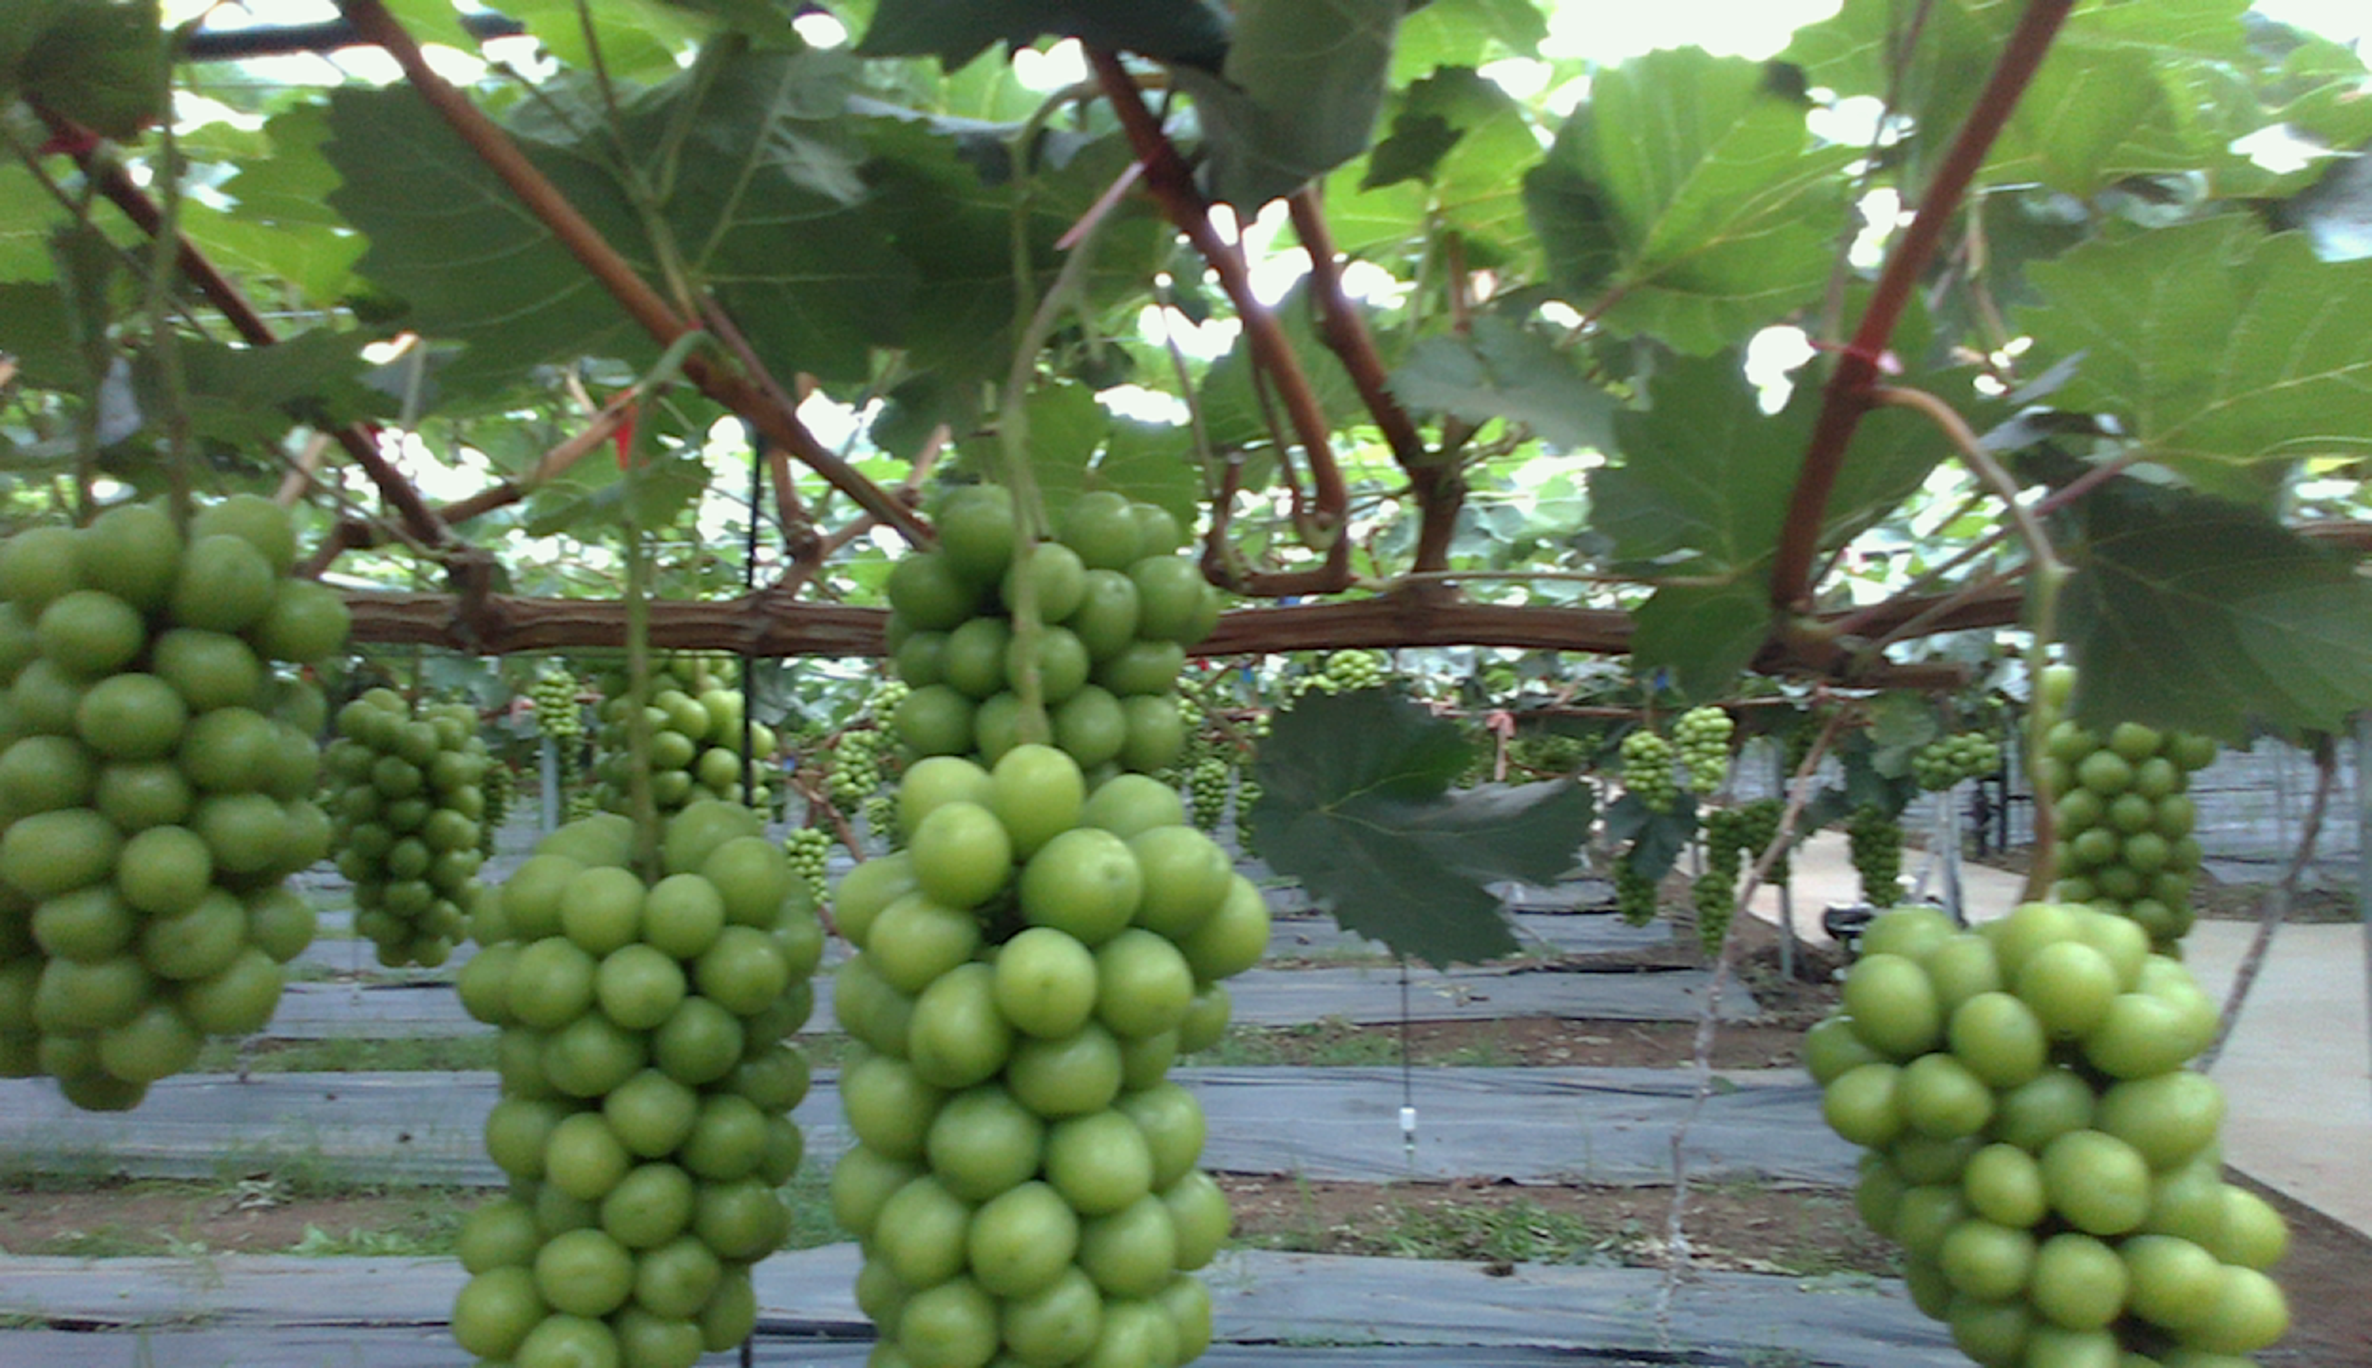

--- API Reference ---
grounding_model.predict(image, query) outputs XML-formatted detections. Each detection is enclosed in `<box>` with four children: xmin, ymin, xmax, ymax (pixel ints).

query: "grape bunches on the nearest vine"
<box><xmin>880</xmin><ymin>479</ymin><xmax>1215</xmax><ymax>788</ymax></box>
<box><xmin>834</xmin><ymin>743</ymin><xmax>1272</xmax><ymax>1366</ymax></box>
<box><xmin>1806</xmin><ymin>899</ymin><xmax>2290</xmax><ymax>1366</ymax></box>
<box><xmin>2</xmin><ymin>488</ymin><xmax>350</xmax><ymax>1083</ymax></box>
<box><xmin>452</xmin><ymin>798</ymin><xmax>821</xmax><ymax>1366</ymax></box>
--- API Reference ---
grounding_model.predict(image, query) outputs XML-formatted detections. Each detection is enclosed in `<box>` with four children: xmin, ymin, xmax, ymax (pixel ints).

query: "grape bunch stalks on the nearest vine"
<box><xmin>141</xmin><ymin>78</ymin><xmax>194</xmax><ymax>526</ymax></box>
<box><xmin>1011</xmin><ymin>78</ymin><xmax>1108</xmax><ymax>534</ymax></box>
<box><xmin>620</xmin><ymin>331</ymin><xmax>717</xmax><ymax>883</ymax></box>
<box><xmin>1868</xmin><ymin>384</ymin><xmax>2074</xmax><ymax>901</ymax></box>
<box><xmin>998</xmin><ymin>199</ymin><xmax>1142</xmax><ymax>737</ymax></box>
